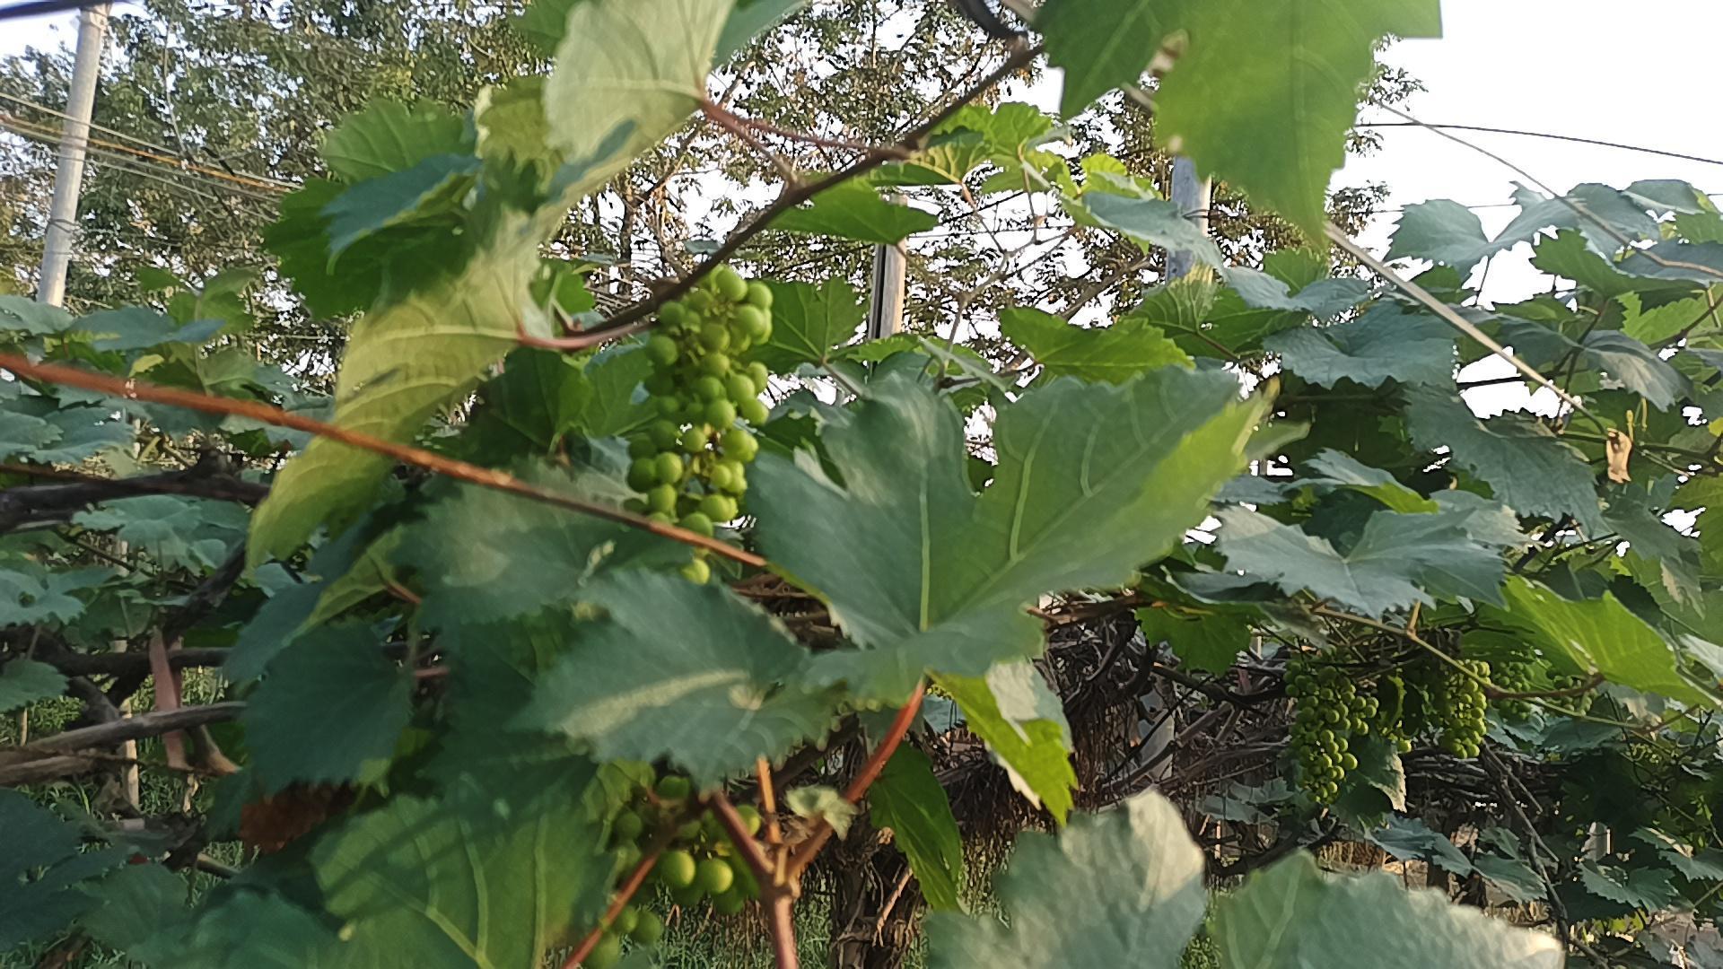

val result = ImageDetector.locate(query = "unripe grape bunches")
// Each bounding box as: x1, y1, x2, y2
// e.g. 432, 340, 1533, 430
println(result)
567, 767, 774, 968
1285, 646, 1378, 809
627, 269, 772, 535
1422, 655, 1489, 757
